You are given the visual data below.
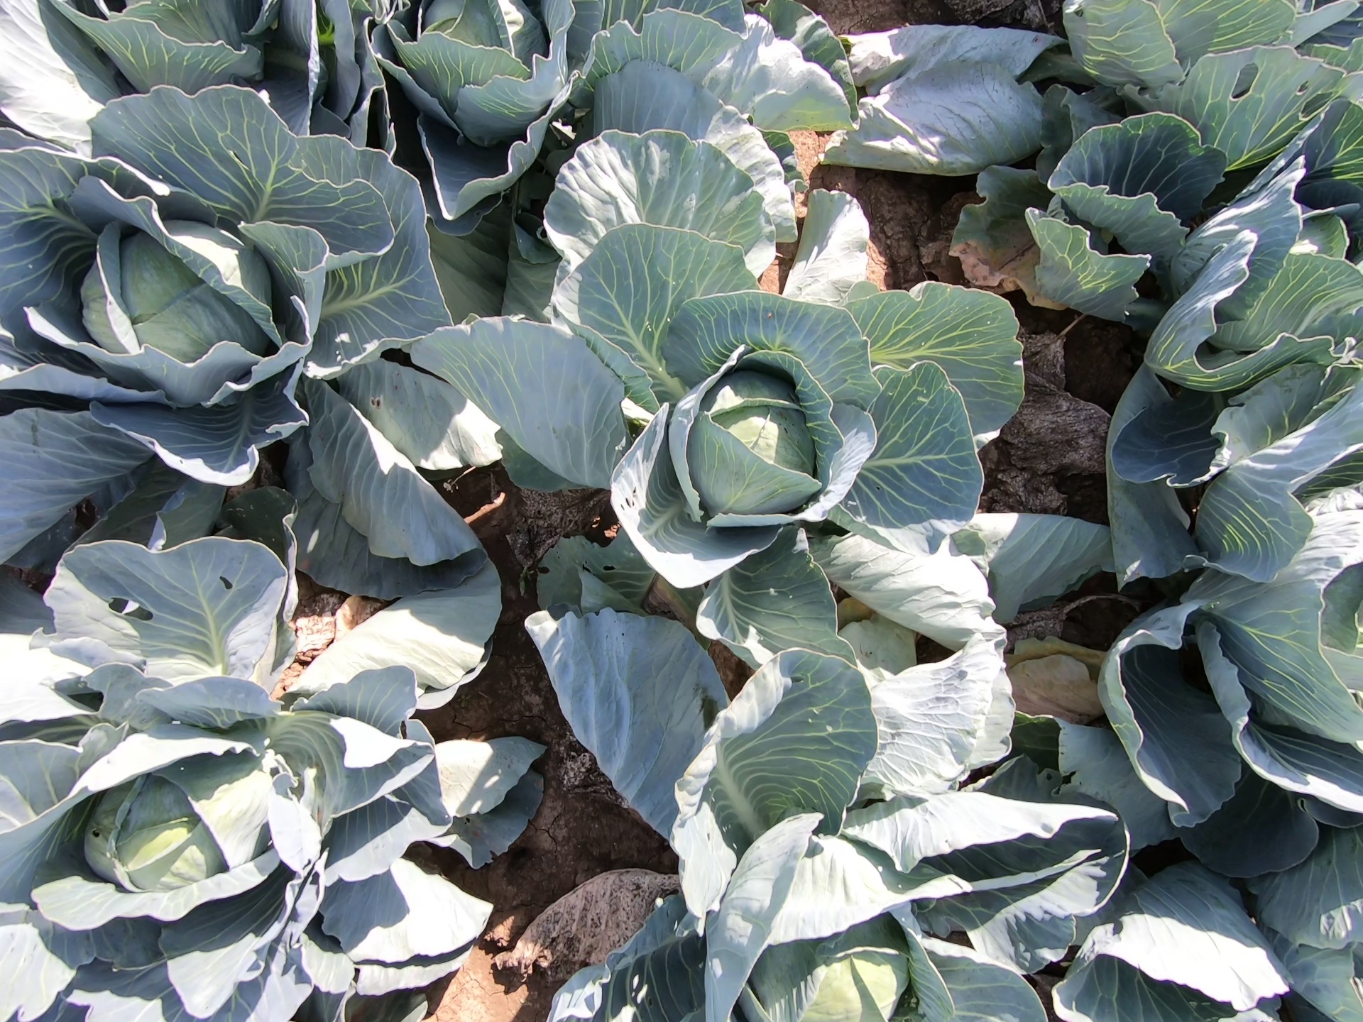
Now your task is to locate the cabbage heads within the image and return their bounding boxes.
[82,216,270,380]
[737,847,916,1018]
[684,366,821,520]
[422,2,552,106]
[1186,205,1342,328]
[80,734,278,899]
